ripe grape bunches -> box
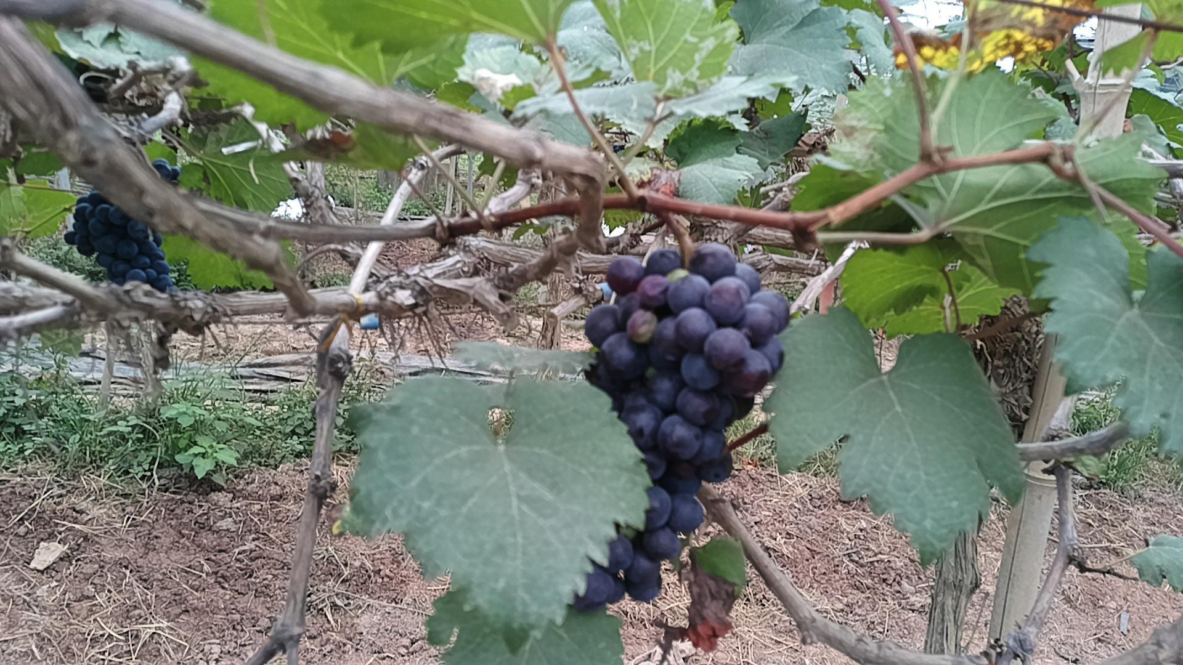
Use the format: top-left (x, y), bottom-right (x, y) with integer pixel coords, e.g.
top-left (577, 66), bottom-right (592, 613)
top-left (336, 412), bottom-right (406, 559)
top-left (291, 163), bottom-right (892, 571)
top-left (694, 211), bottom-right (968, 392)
top-left (575, 243), bottom-right (789, 610)
top-left (63, 159), bottom-right (181, 295)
